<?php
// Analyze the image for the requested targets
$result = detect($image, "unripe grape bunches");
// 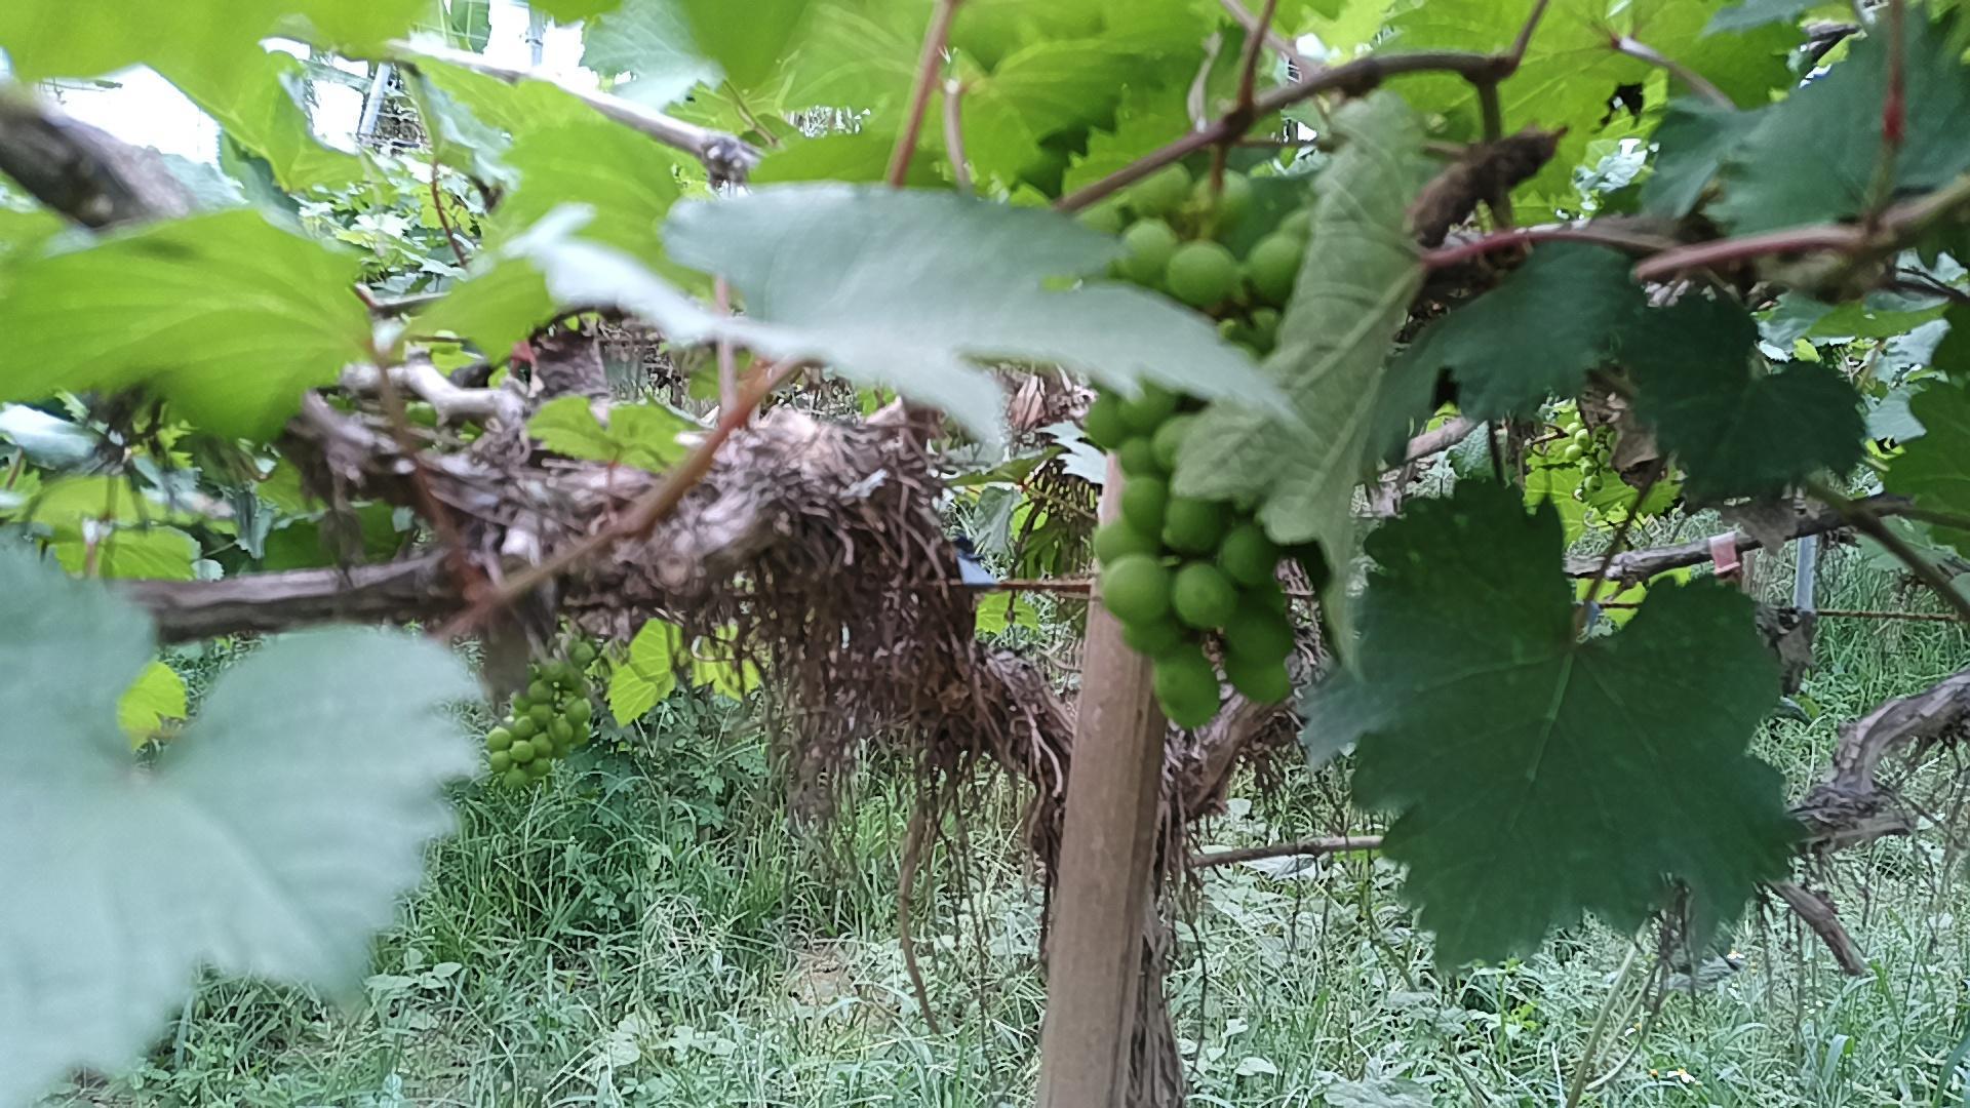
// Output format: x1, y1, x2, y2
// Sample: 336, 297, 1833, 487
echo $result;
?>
1564, 410, 1618, 503
486, 631, 599, 787
1075, 159, 1315, 730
